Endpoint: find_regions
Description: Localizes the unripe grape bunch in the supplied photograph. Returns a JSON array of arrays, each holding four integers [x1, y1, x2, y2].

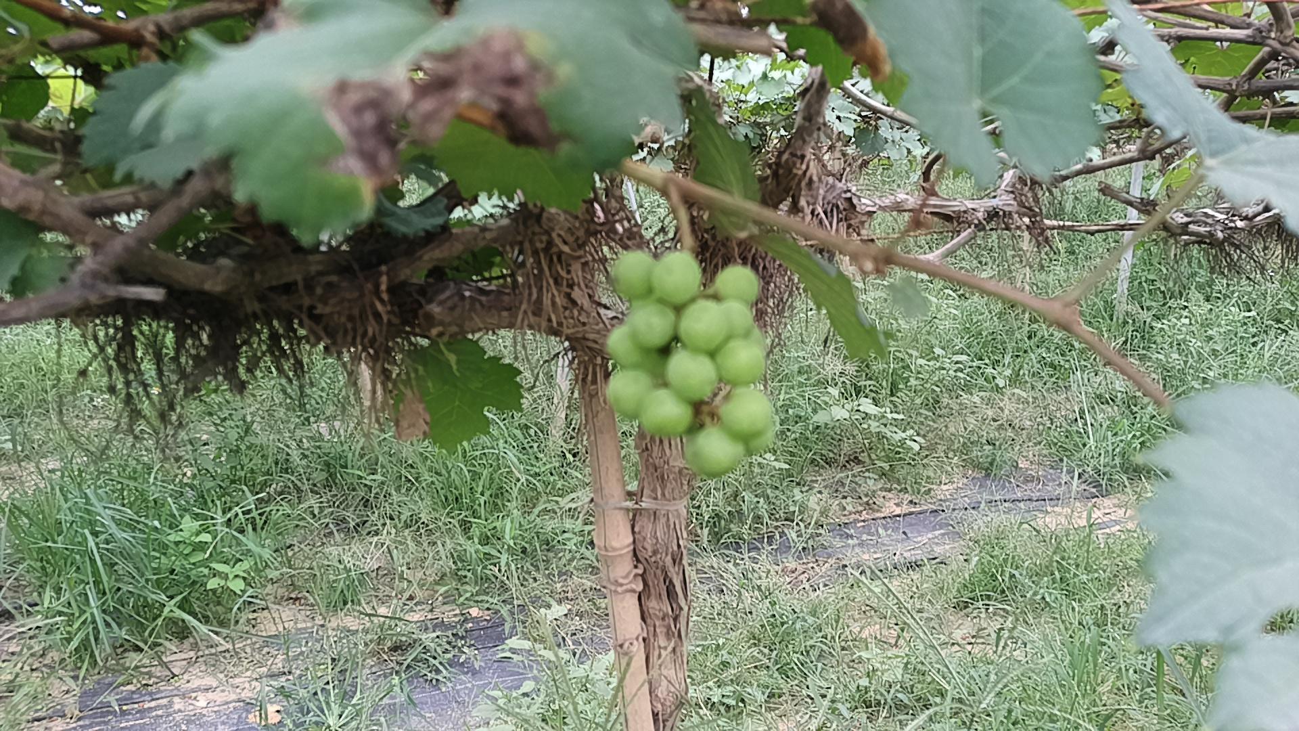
[[606, 250, 774, 477]]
